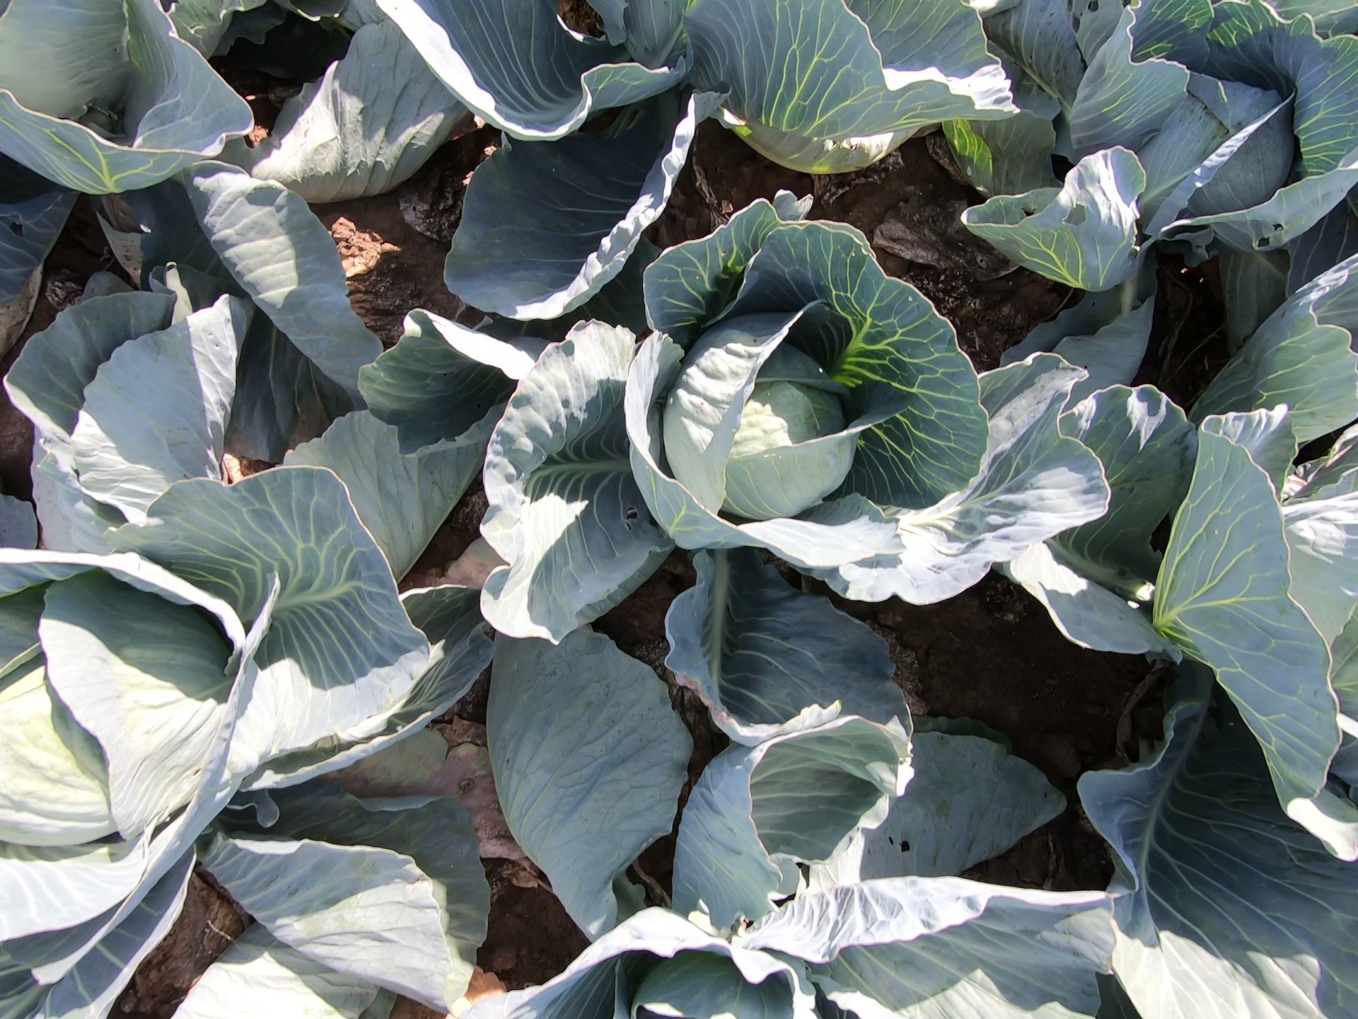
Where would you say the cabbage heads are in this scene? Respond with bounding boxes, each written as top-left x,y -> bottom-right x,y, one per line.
1151,80 -> 1299,220
0,592 -> 217,842
685,350 -> 848,517
633,949 -> 818,1018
